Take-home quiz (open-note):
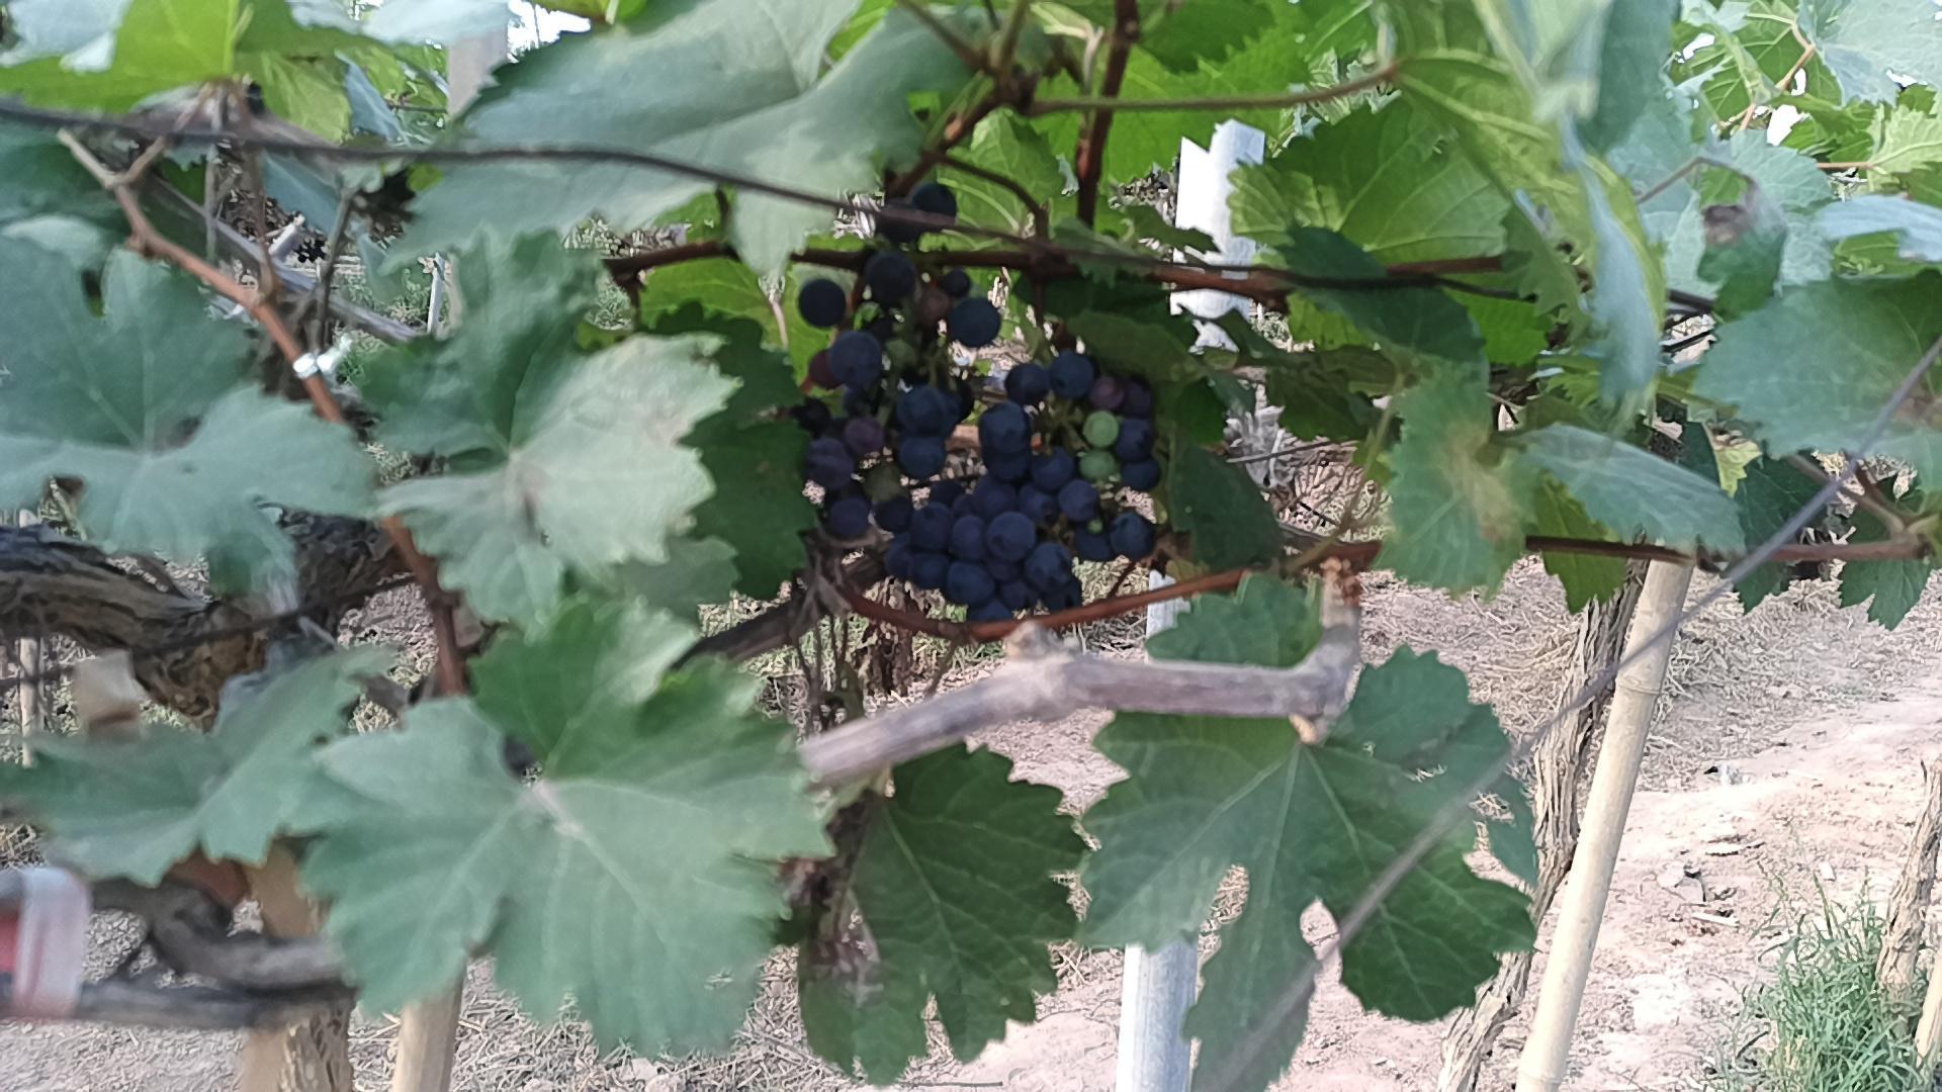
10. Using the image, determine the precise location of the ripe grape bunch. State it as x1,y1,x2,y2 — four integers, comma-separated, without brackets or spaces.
792,182,1000,540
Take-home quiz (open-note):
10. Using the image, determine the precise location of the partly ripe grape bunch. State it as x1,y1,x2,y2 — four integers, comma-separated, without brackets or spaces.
887,350,1157,622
